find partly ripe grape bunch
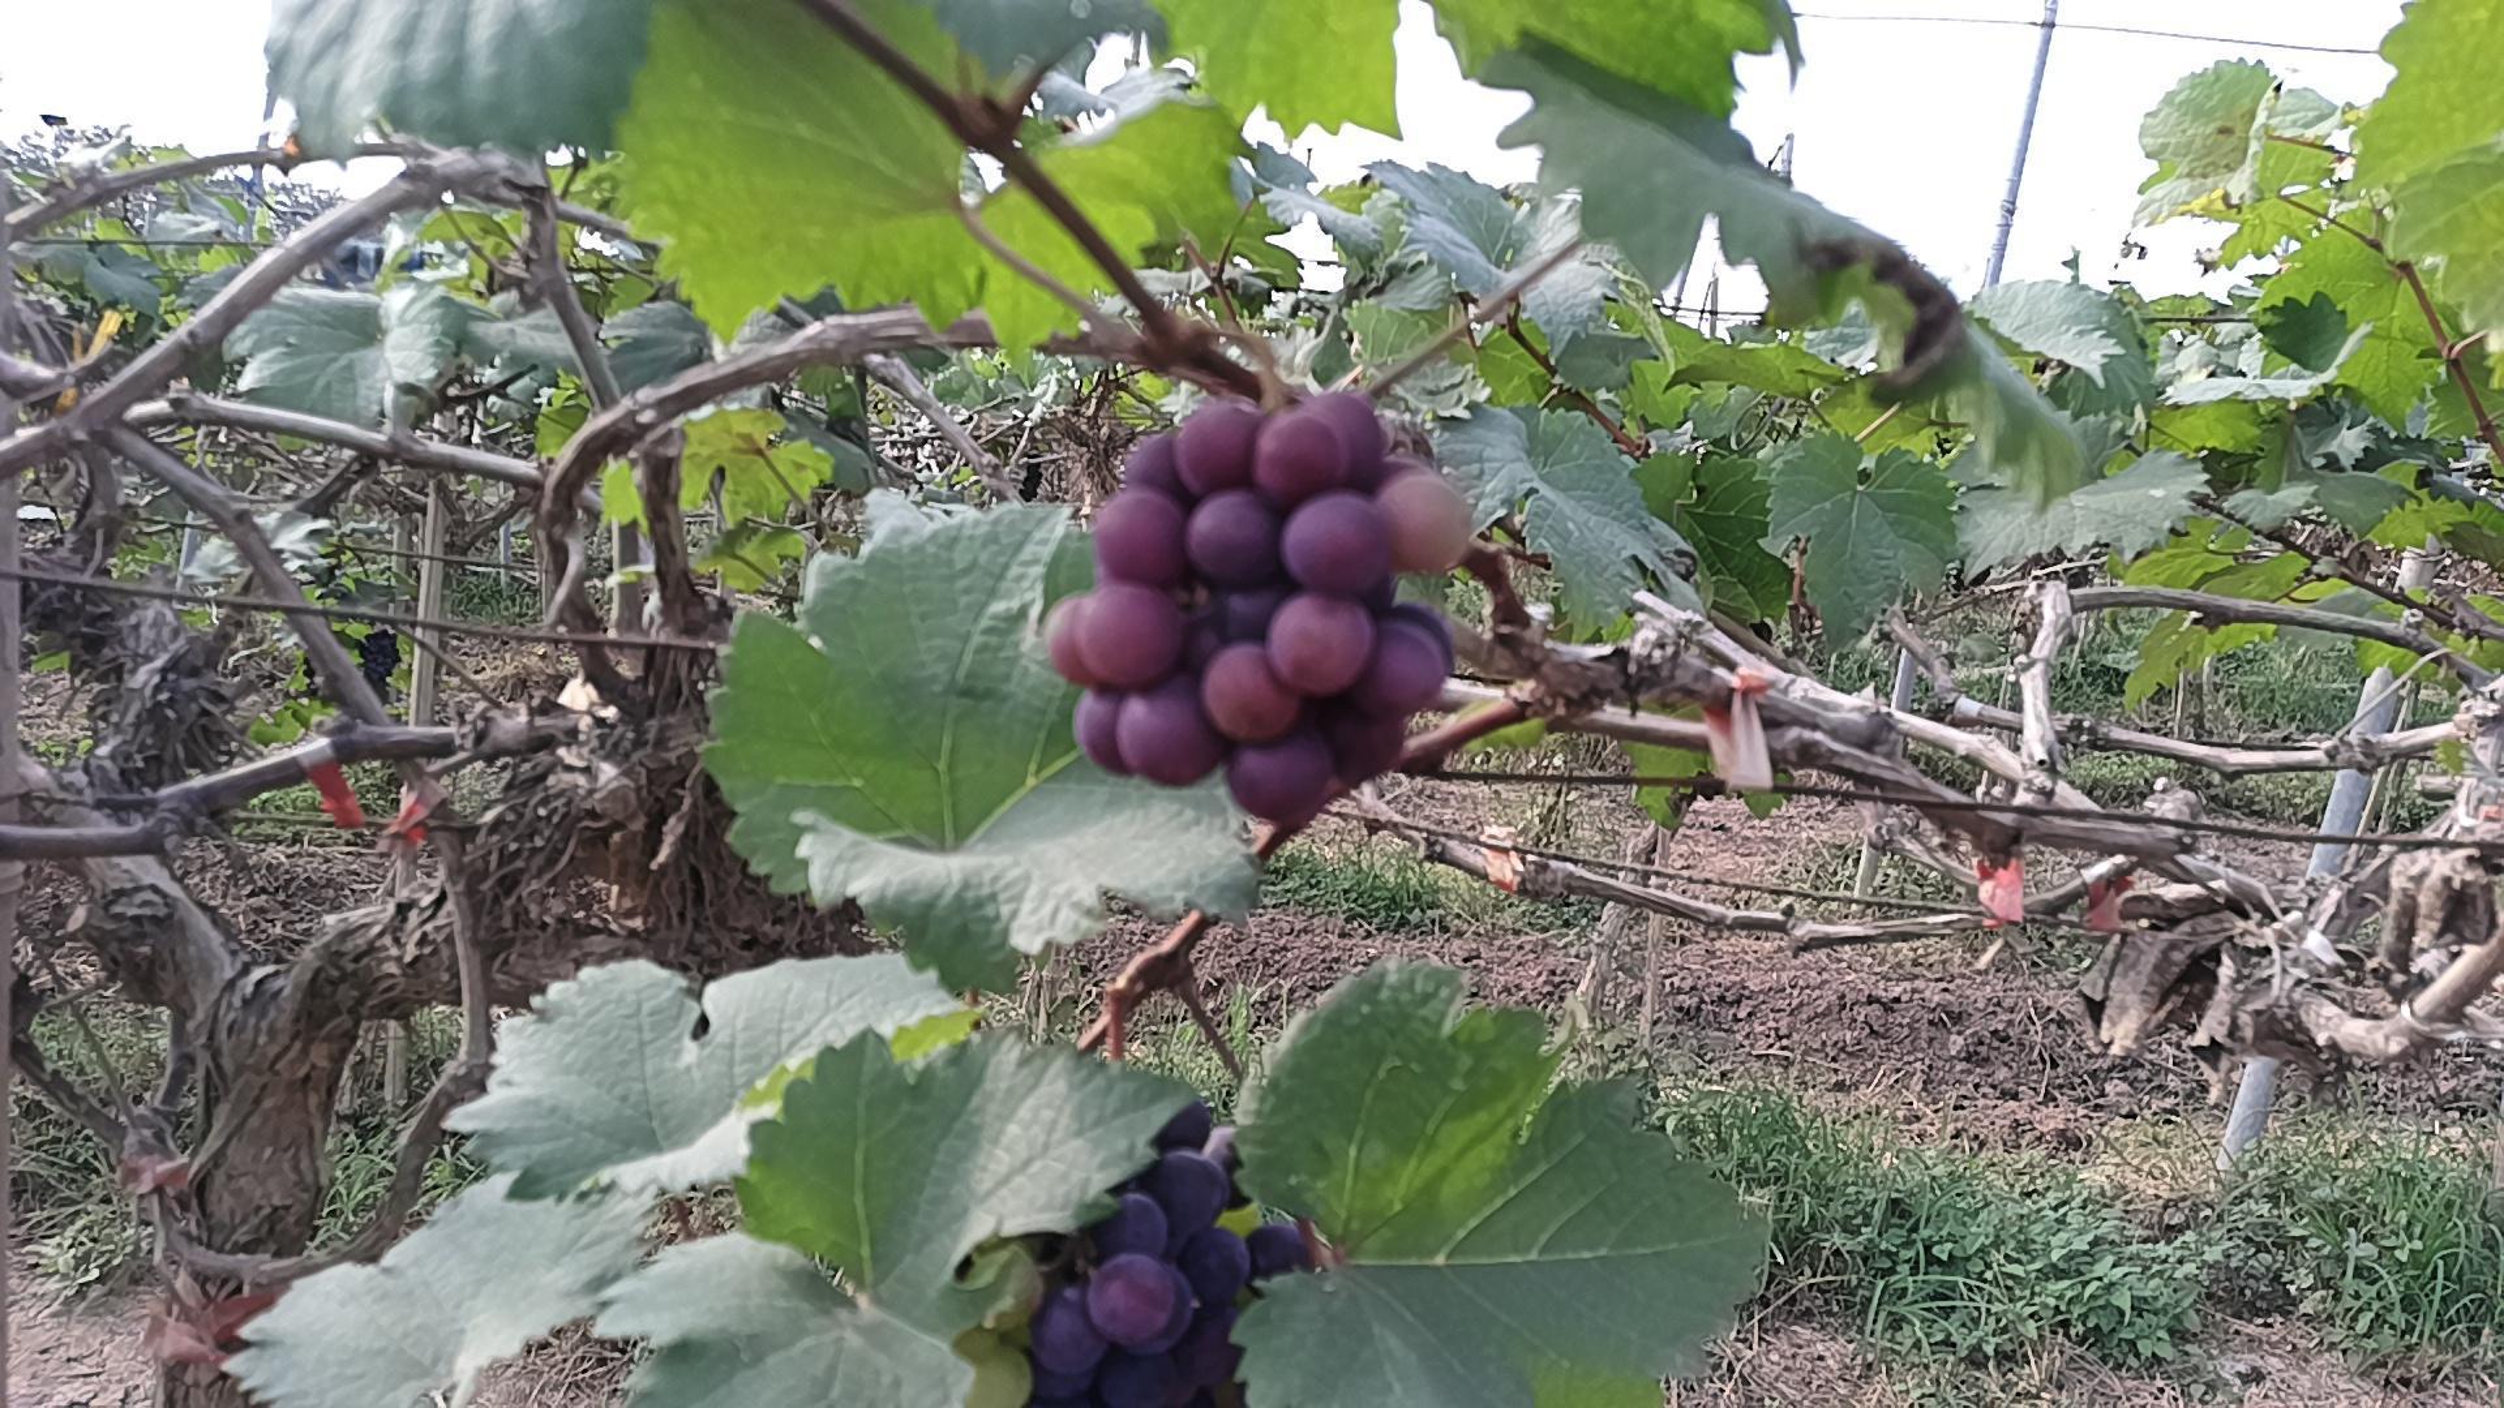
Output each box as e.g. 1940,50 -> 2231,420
959,1102 -> 1313,1407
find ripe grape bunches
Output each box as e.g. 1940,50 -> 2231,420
1049,392 -> 1467,828
335,622 -> 400,704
